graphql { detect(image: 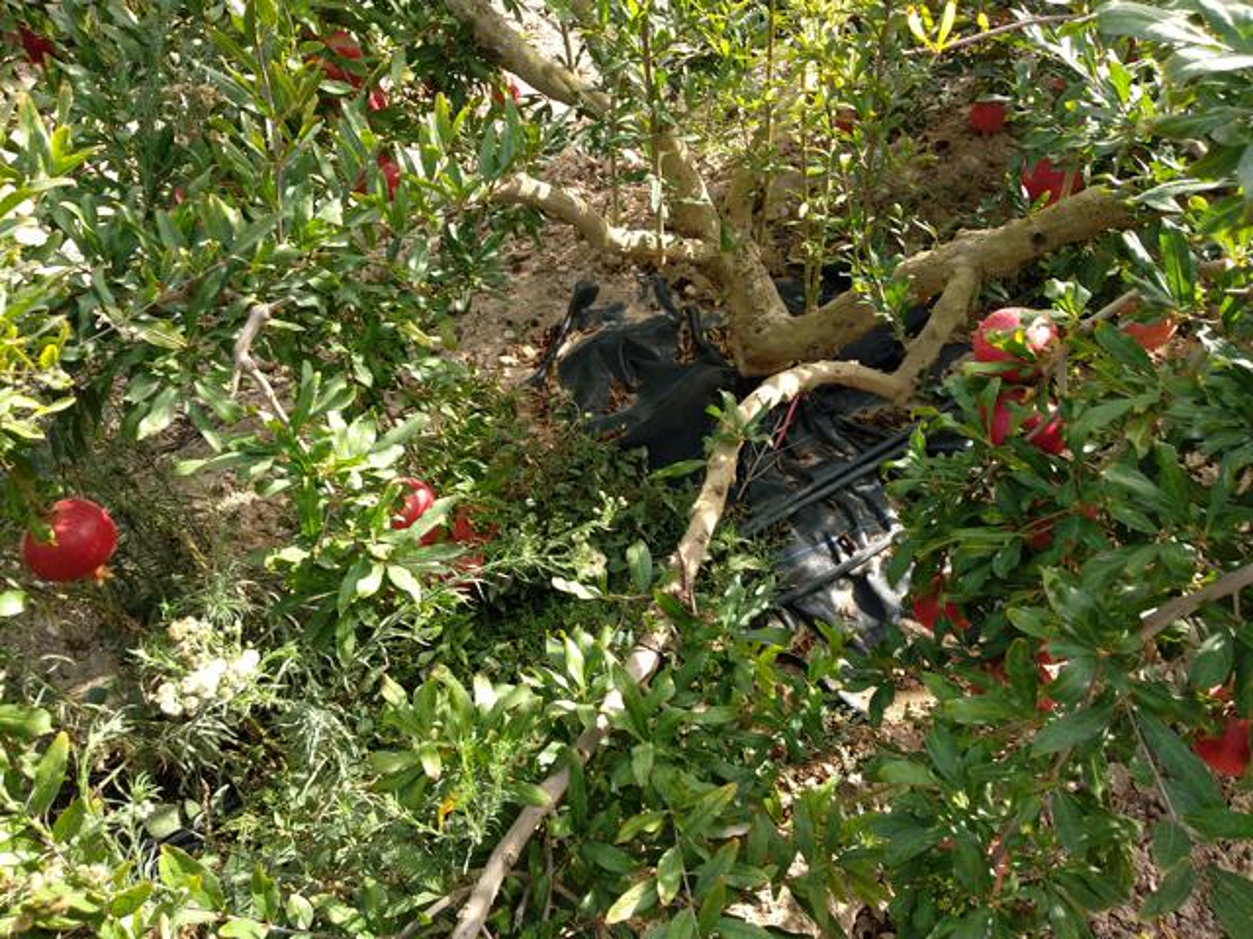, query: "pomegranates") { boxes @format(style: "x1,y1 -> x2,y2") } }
979,387 -> 1065,456
1126,319 -> 1181,350
1190,716 -> 1253,779
392,475 -> 437,530
969,102 -> 1006,139
971,307 -> 1059,383
22,495 -> 117,591
1022,156 -> 1085,205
